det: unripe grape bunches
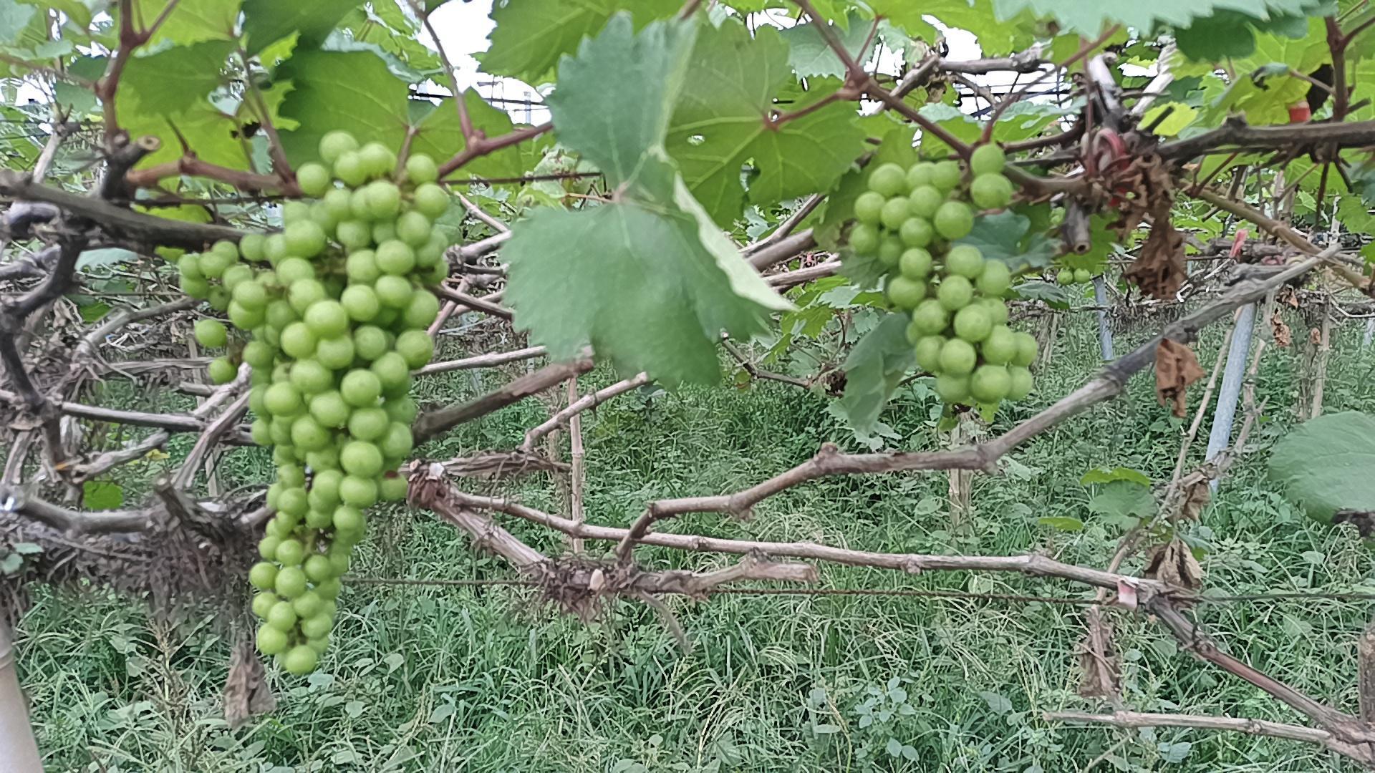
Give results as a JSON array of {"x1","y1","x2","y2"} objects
[
  {"x1": 1056, "y1": 266, "x2": 1092, "y2": 286},
  {"x1": 847, "y1": 145, "x2": 1039, "y2": 406},
  {"x1": 178, "y1": 130, "x2": 450, "y2": 674}
]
